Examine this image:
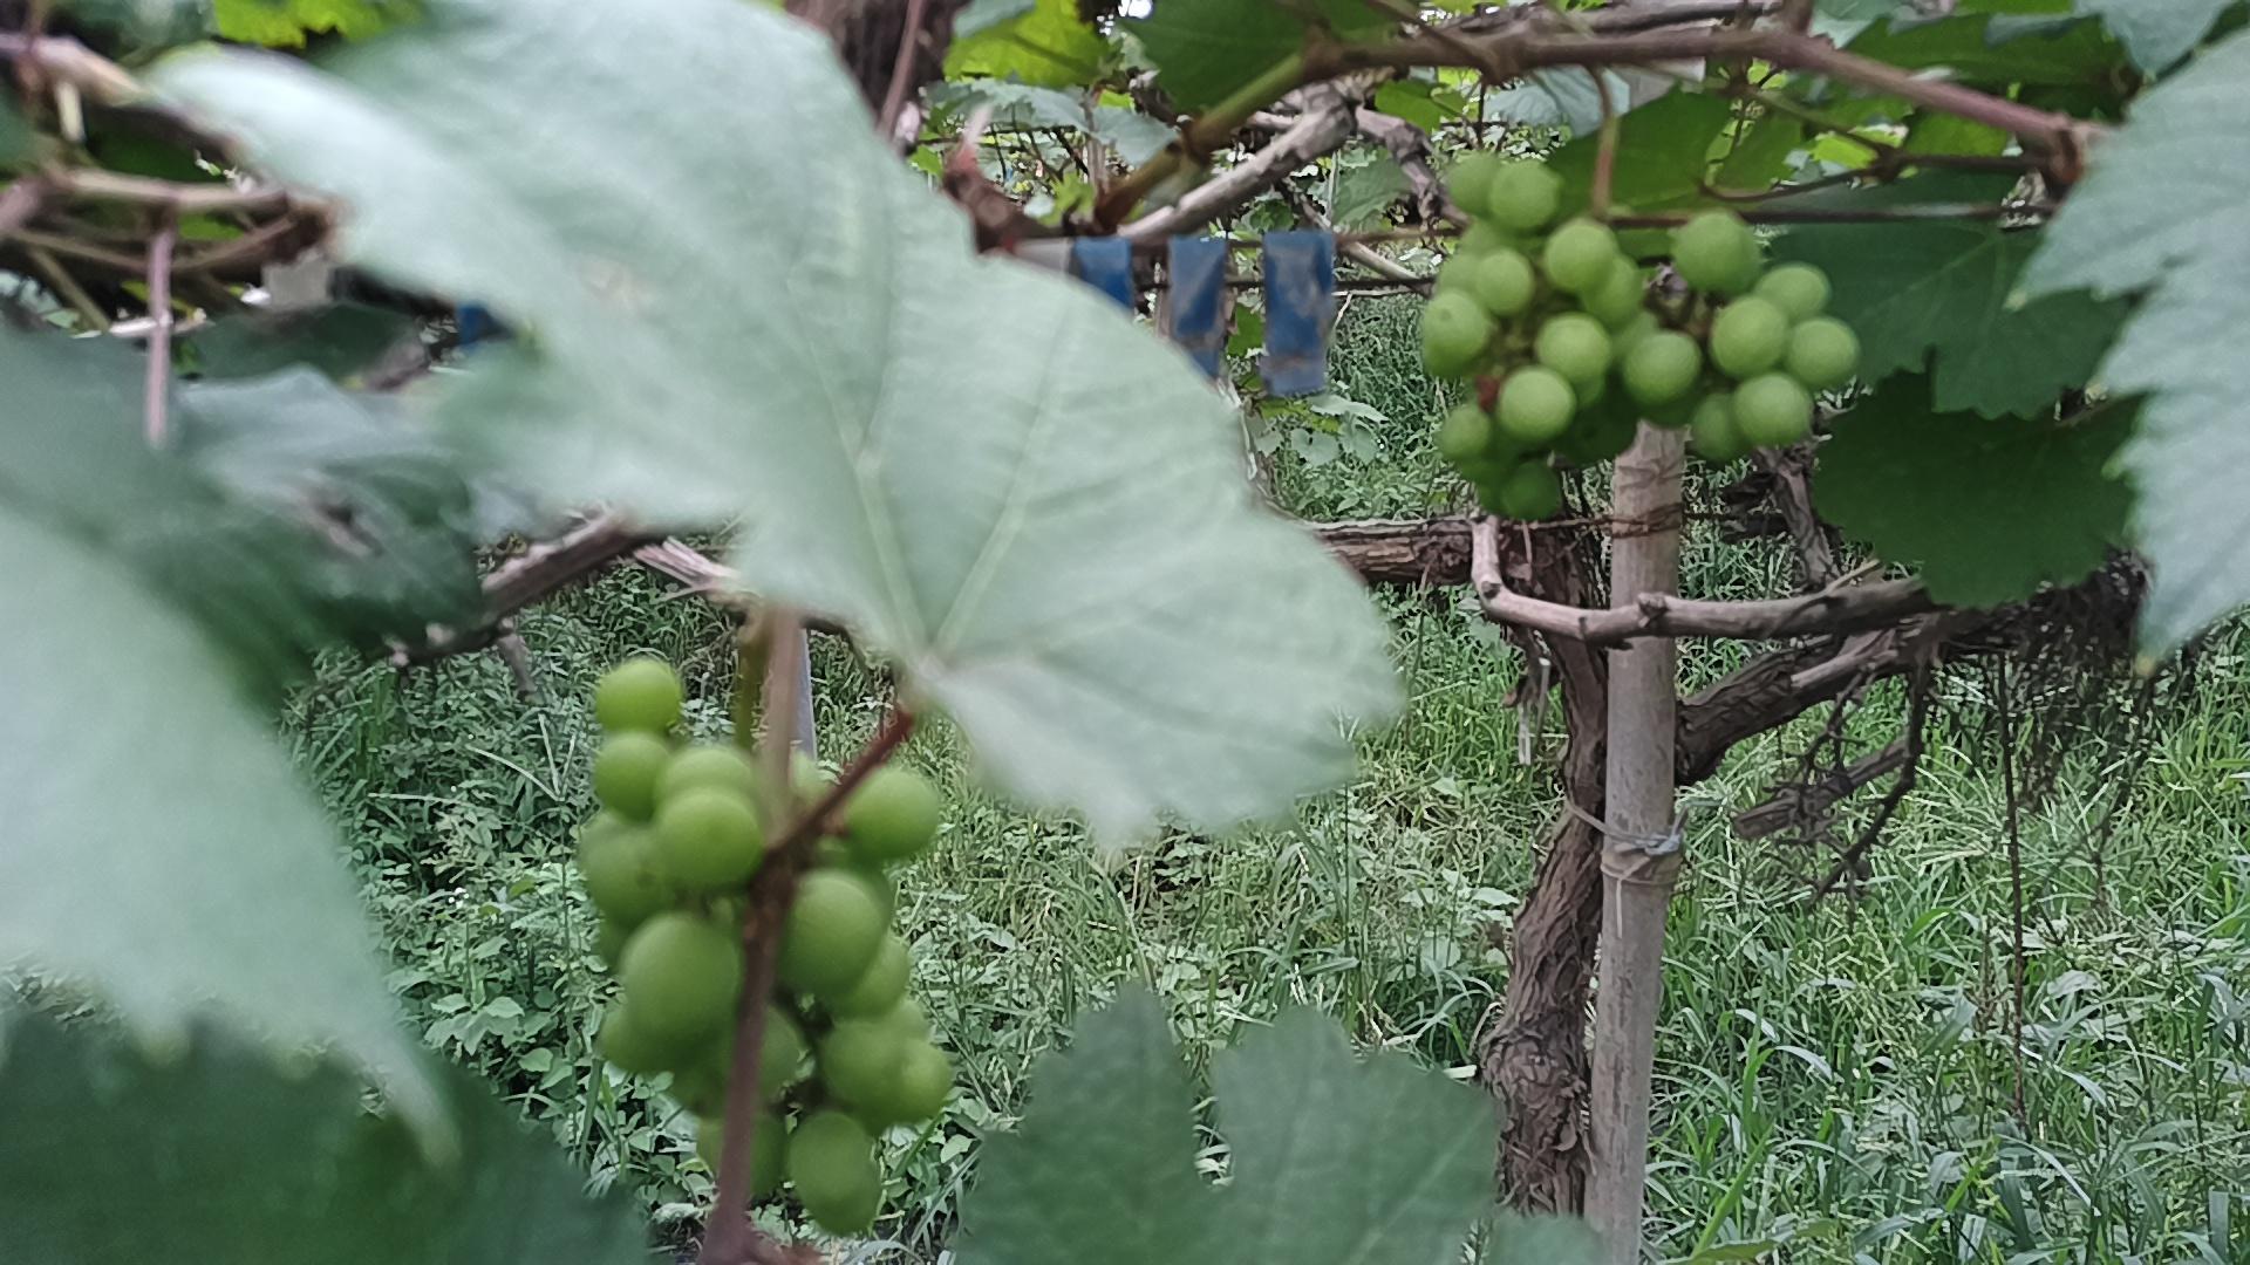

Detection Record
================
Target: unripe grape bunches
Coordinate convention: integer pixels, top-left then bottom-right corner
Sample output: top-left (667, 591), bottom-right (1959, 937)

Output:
top-left (579, 659), bottom-right (952, 1232)
top-left (1419, 153), bottom-right (1860, 518)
